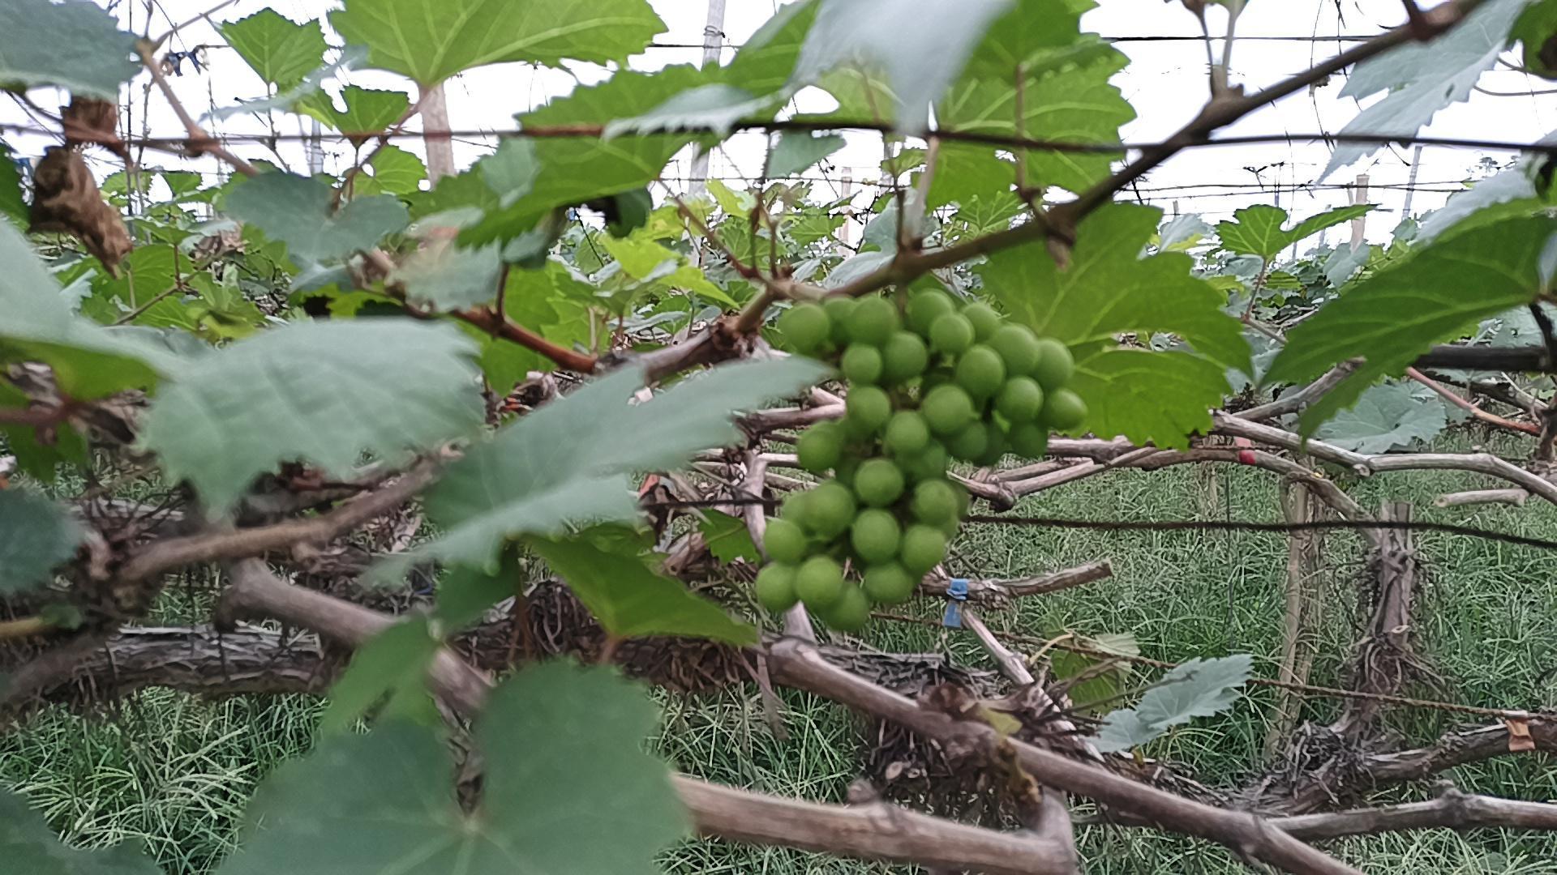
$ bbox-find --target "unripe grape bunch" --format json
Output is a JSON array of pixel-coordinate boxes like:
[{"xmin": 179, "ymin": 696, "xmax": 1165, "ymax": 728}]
[{"xmin": 757, "ymin": 279, "xmax": 1087, "ymax": 630}]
